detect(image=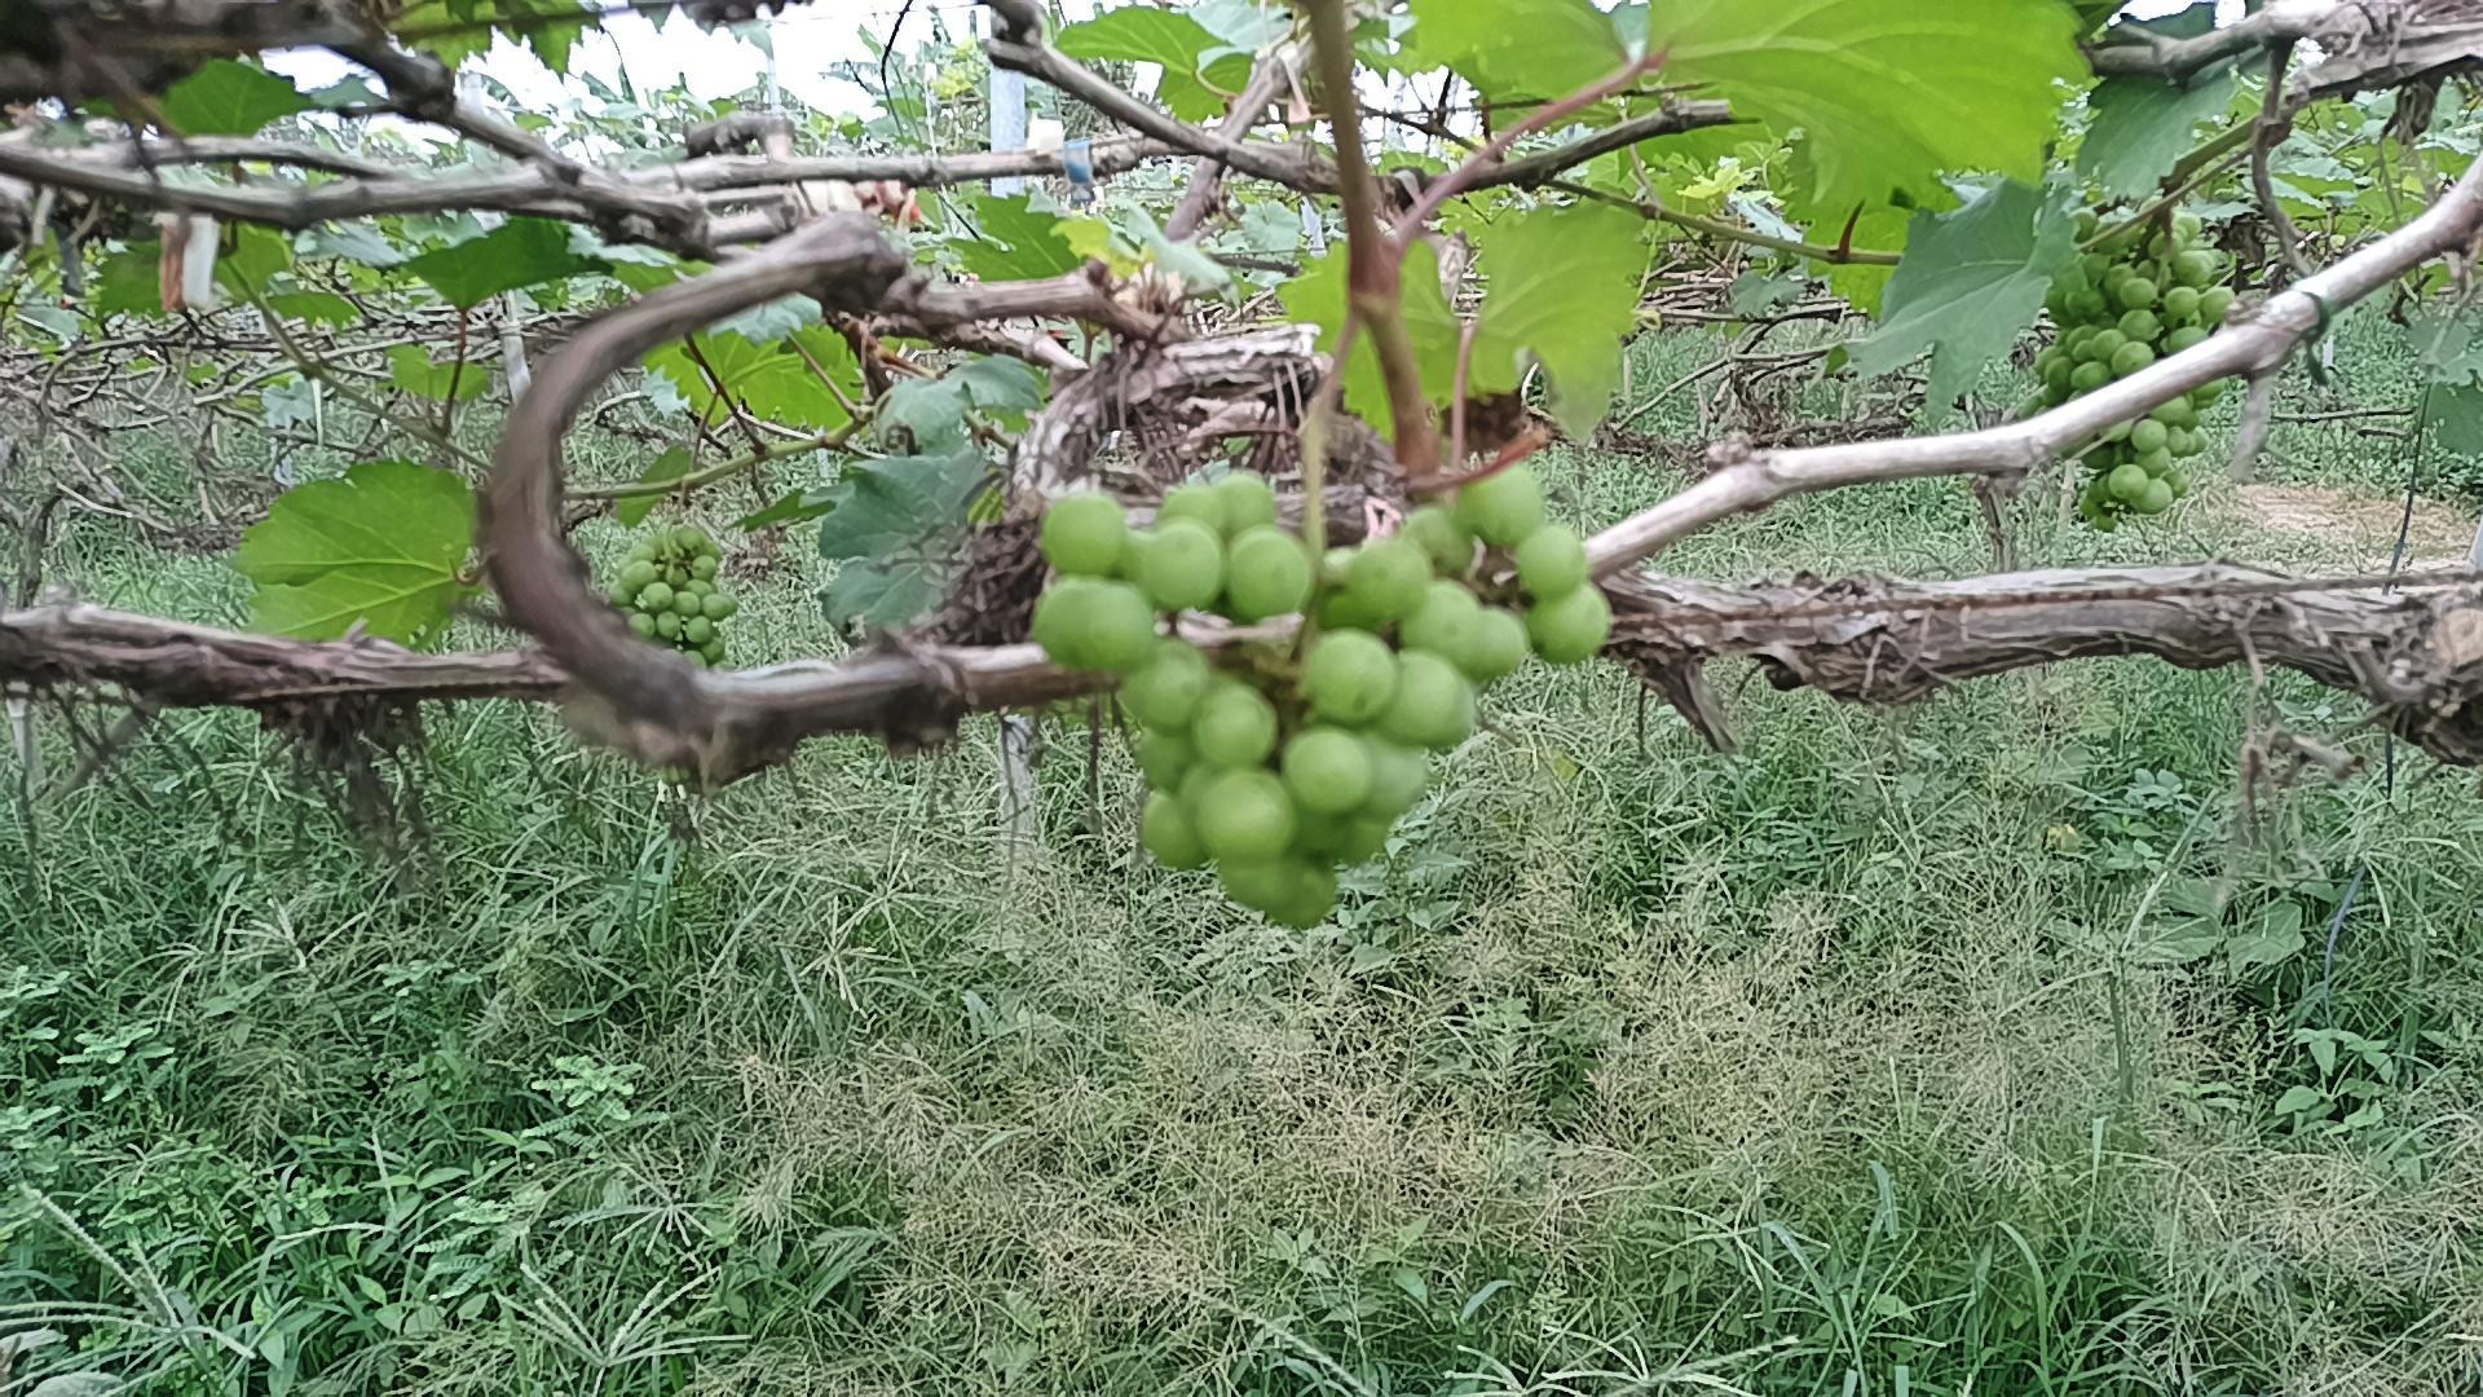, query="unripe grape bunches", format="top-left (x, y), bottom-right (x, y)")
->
top-left (1033, 463), bottom-right (1607, 927)
top-left (608, 526), bottom-right (738, 665)
top-left (2015, 197), bottom-right (2236, 534)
